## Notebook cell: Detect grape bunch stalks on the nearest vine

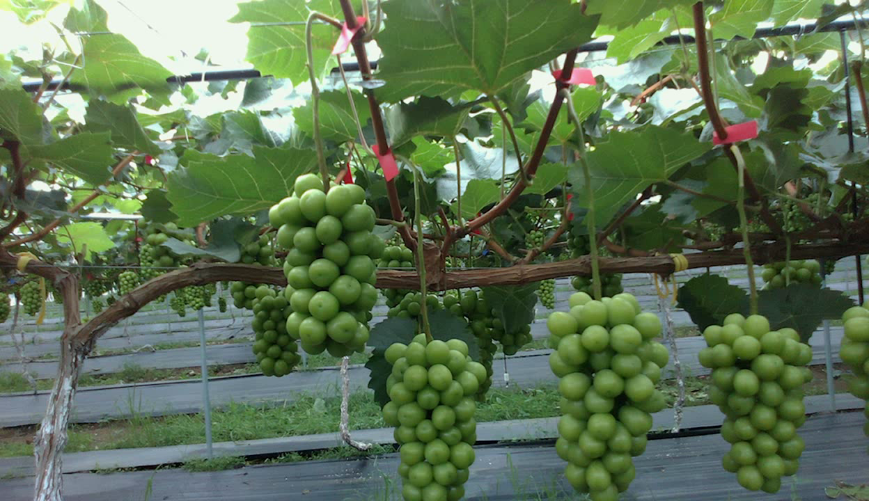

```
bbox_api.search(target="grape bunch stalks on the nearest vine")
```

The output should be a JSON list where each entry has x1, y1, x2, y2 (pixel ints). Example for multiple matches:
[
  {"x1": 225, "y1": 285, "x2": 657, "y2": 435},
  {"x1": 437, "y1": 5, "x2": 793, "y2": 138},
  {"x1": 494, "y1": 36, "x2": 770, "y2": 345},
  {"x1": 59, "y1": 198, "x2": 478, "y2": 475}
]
[
  {"x1": 400, "y1": 154, "x2": 432, "y2": 342},
  {"x1": 733, "y1": 148, "x2": 758, "y2": 314},
  {"x1": 564, "y1": 92, "x2": 601, "y2": 300},
  {"x1": 306, "y1": 11, "x2": 338, "y2": 193}
]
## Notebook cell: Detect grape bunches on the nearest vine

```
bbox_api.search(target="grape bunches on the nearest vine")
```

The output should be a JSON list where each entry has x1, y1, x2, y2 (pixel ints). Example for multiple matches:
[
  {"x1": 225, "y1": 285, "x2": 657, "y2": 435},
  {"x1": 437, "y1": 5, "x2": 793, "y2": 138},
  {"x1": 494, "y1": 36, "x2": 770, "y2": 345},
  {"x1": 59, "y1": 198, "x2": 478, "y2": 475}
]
[
  {"x1": 267, "y1": 174, "x2": 385, "y2": 356},
  {"x1": 381, "y1": 333, "x2": 485, "y2": 500},
  {"x1": 698, "y1": 314, "x2": 813, "y2": 493},
  {"x1": 548, "y1": 292, "x2": 670, "y2": 500}
]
